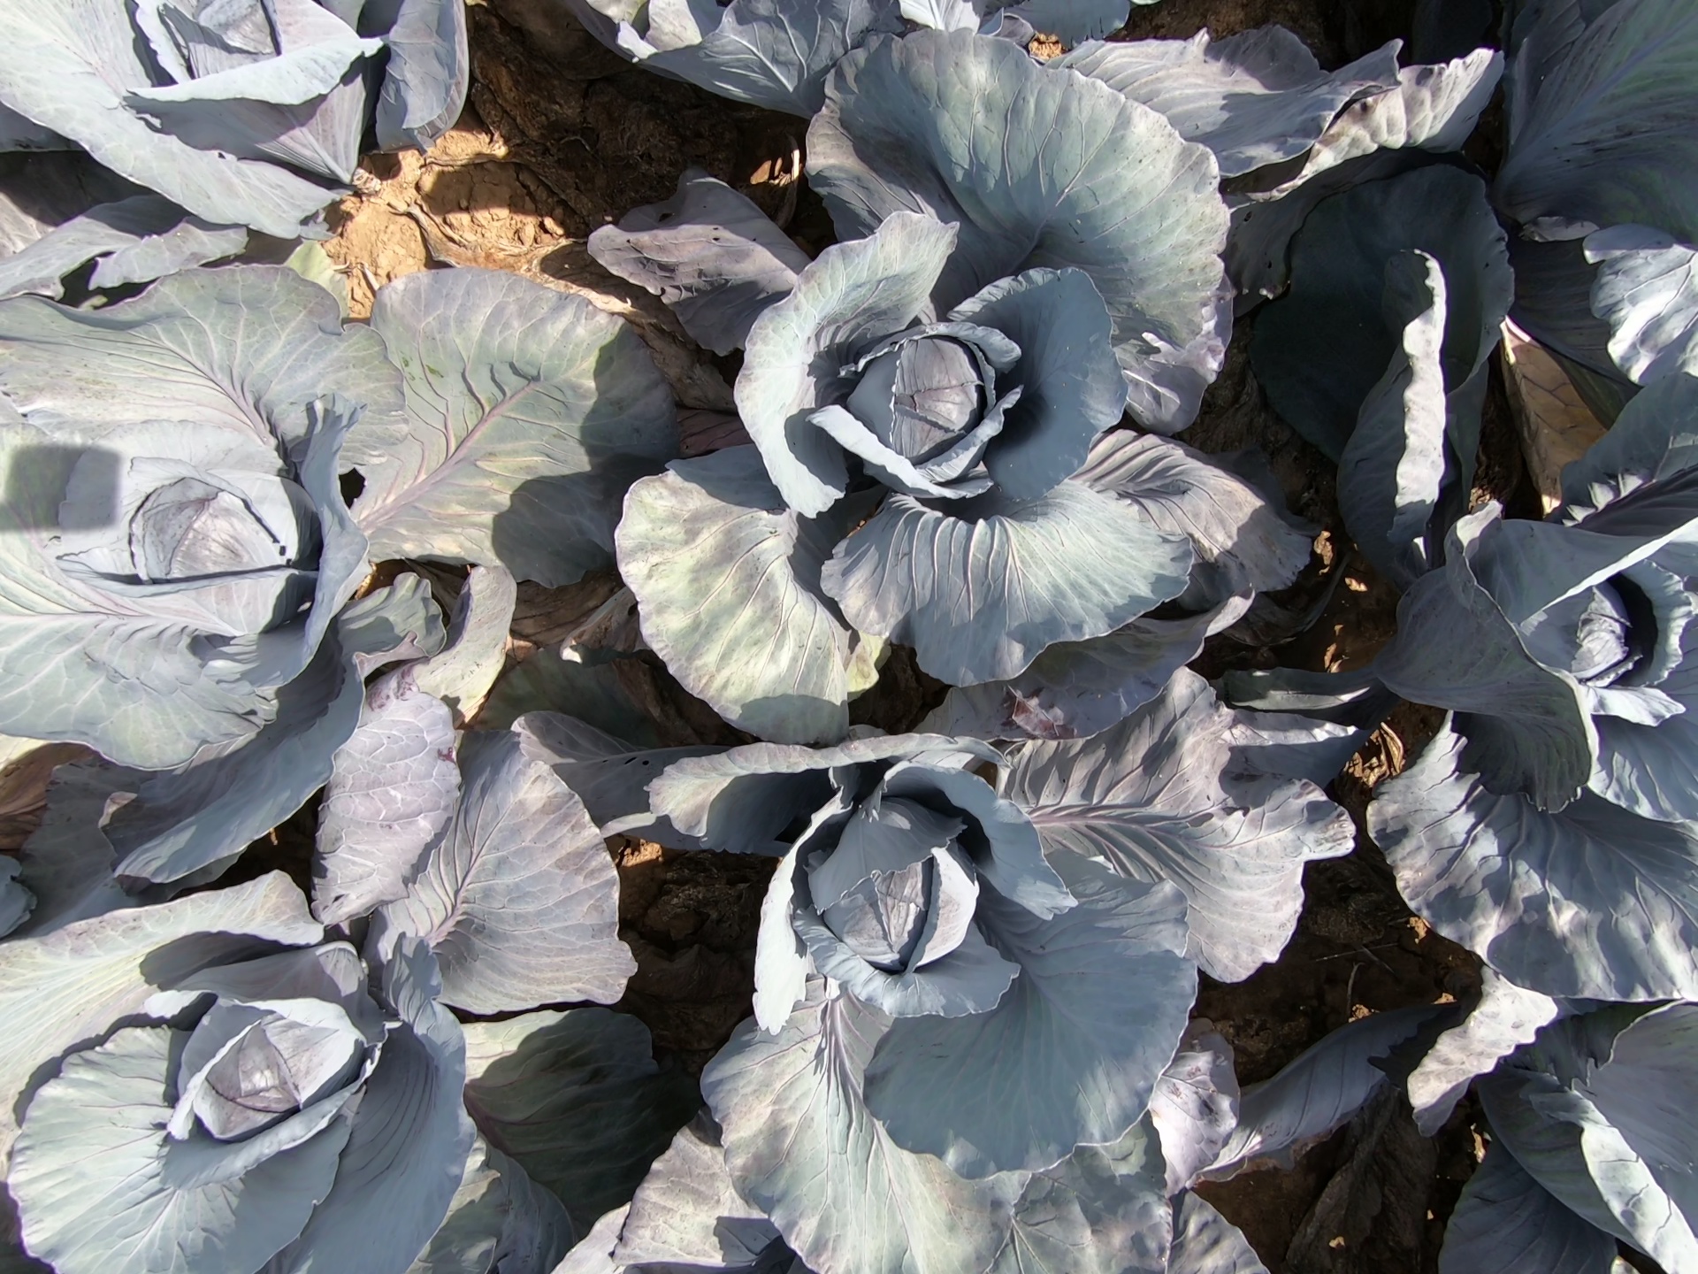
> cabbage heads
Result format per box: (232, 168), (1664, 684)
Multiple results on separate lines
(1492, 556), (1641, 687)
(179, 964), (374, 1146)
(855, 331), (993, 487)
(820, 802), (975, 968)
(182, 3), (376, 159)
(130, 469), (322, 630)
